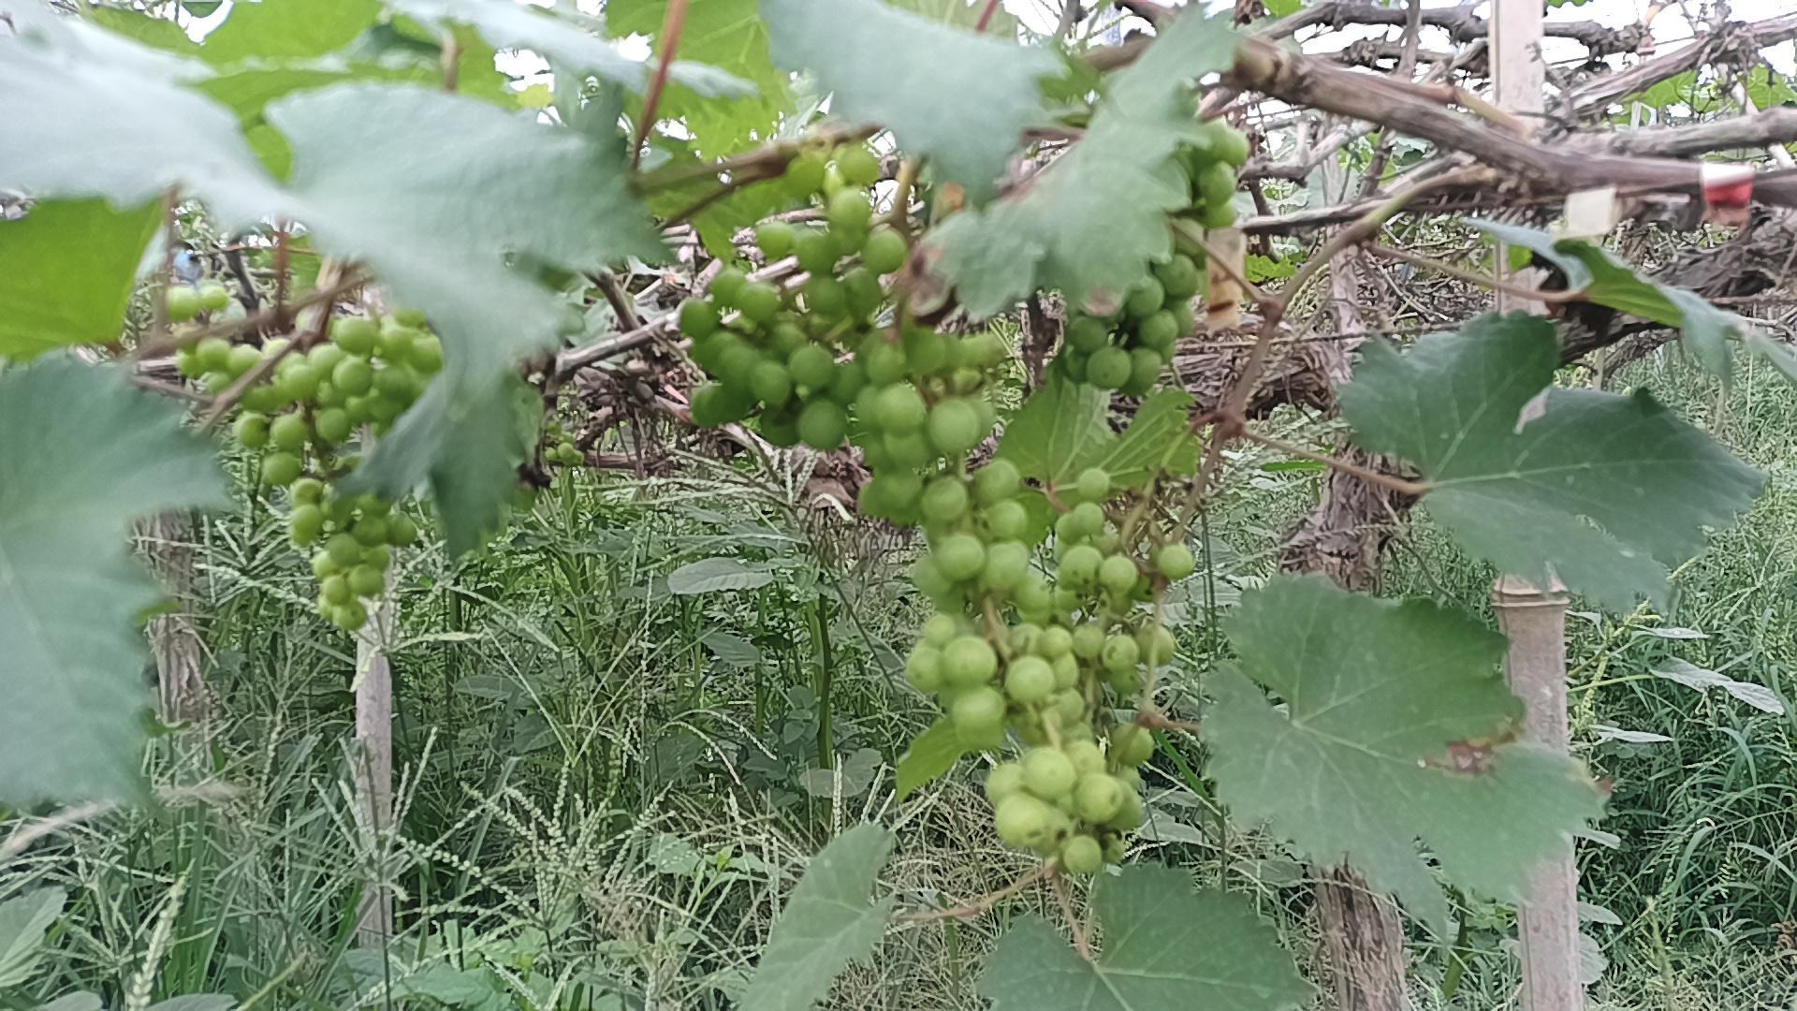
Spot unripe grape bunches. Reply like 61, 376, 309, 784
546, 422, 586, 467
1055, 121, 1248, 397
168, 285, 442, 630
681, 156, 1194, 872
